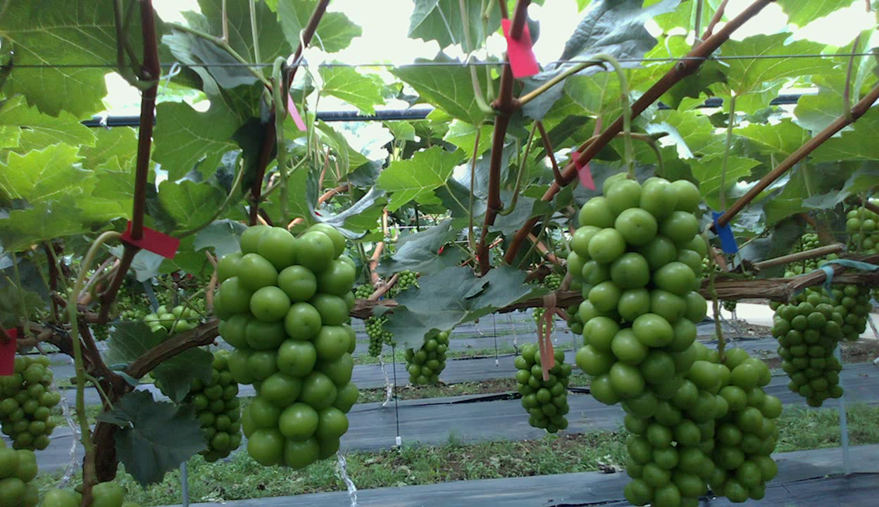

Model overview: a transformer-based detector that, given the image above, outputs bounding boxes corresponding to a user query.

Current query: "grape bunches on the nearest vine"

[704,346,784,503]
[620,342,728,506]
[43,482,139,506]
[0,437,39,506]
[567,172,707,418]
[771,288,843,406]
[213,224,361,469]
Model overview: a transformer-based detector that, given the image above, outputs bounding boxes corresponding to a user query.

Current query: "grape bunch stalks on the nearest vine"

[704,223,727,364]
[519,53,635,180]
[61,232,119,505]
[271,56,289,230]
